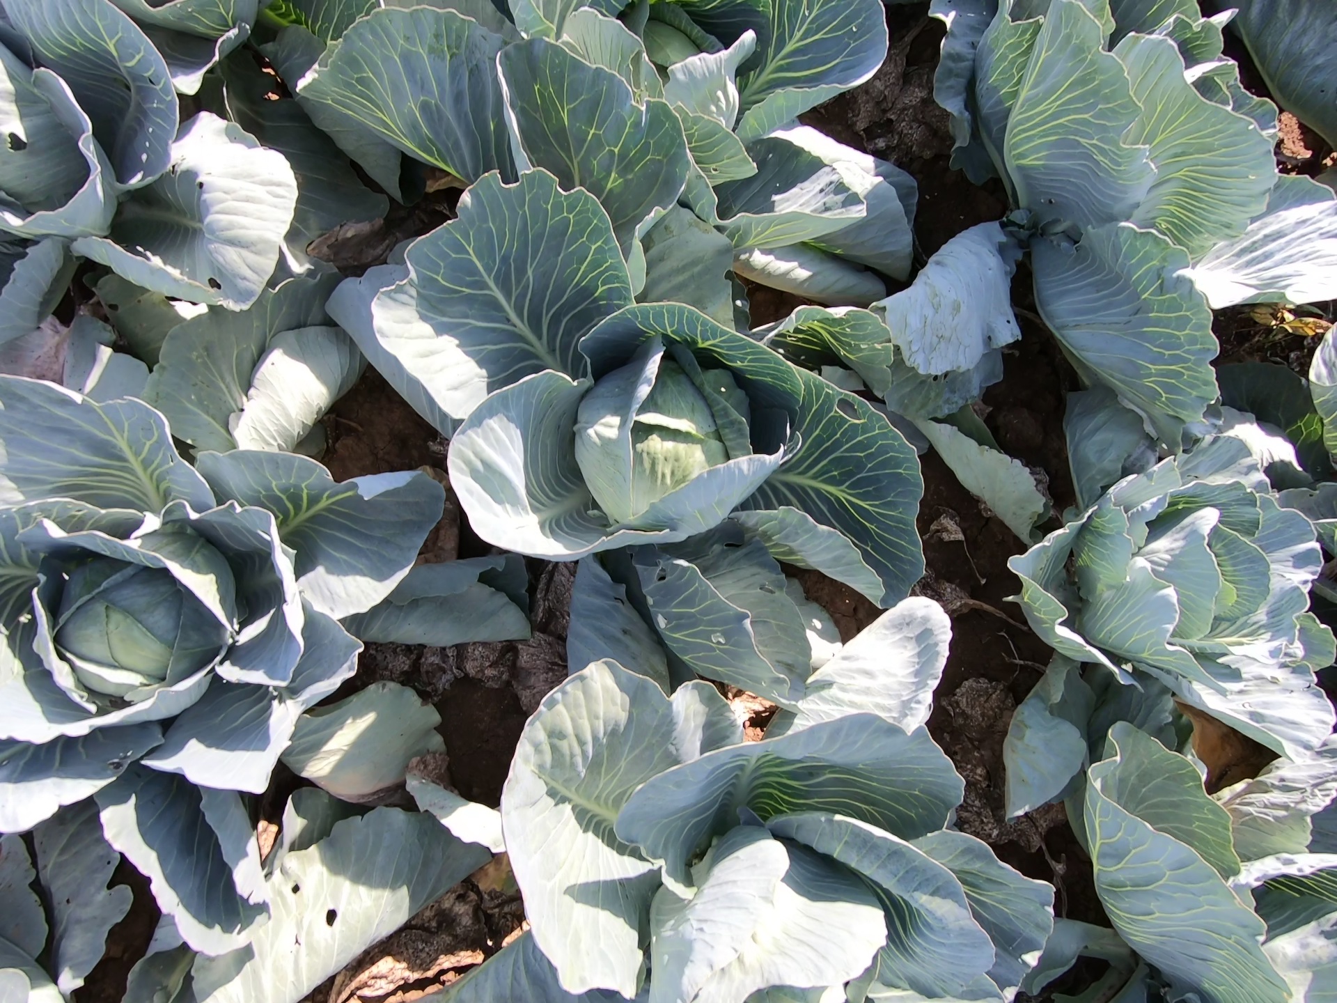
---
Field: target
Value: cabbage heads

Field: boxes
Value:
[603,17,735,157]
[575,361,734,511]
[58,538,230,690]
[685,869,849,1002]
